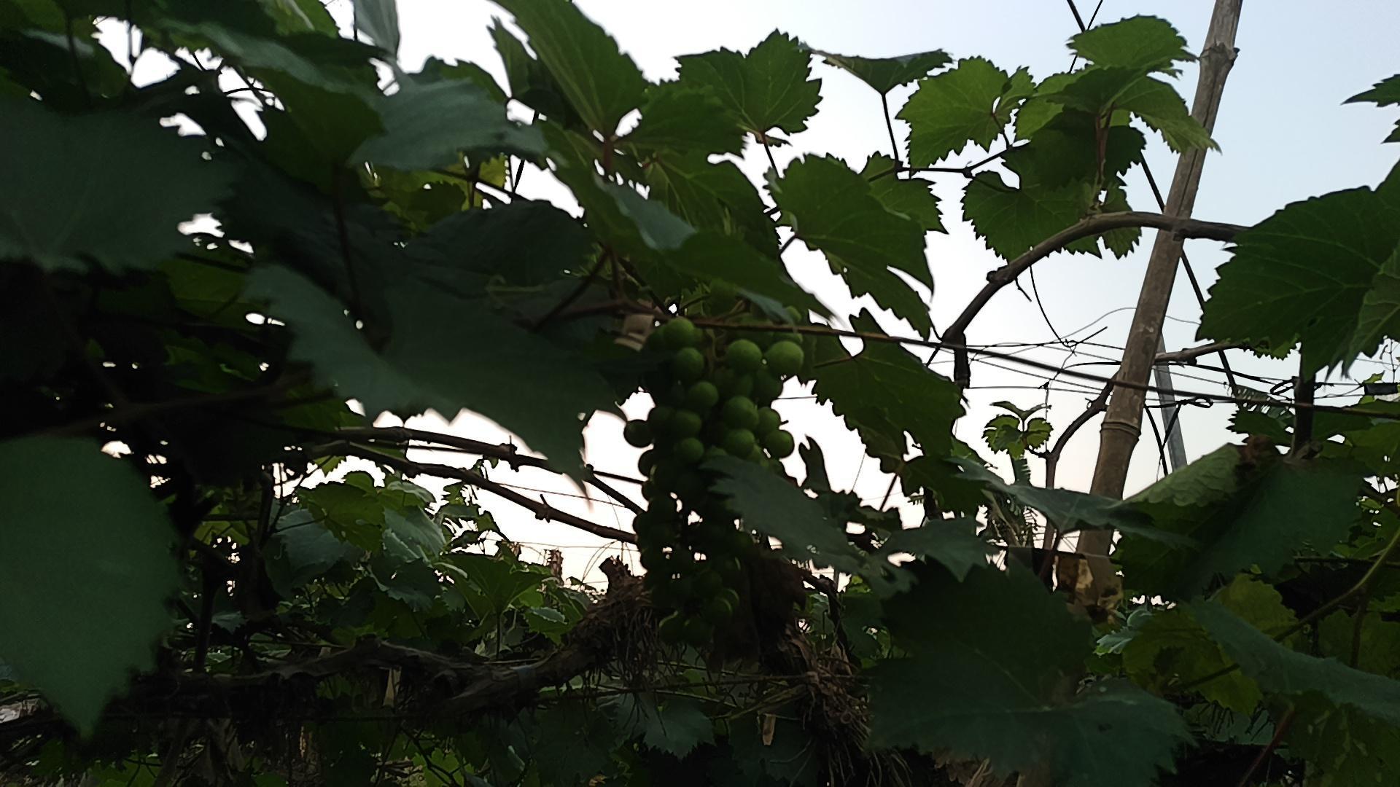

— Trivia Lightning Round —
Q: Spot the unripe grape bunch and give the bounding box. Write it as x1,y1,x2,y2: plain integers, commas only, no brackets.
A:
624,318,804,659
